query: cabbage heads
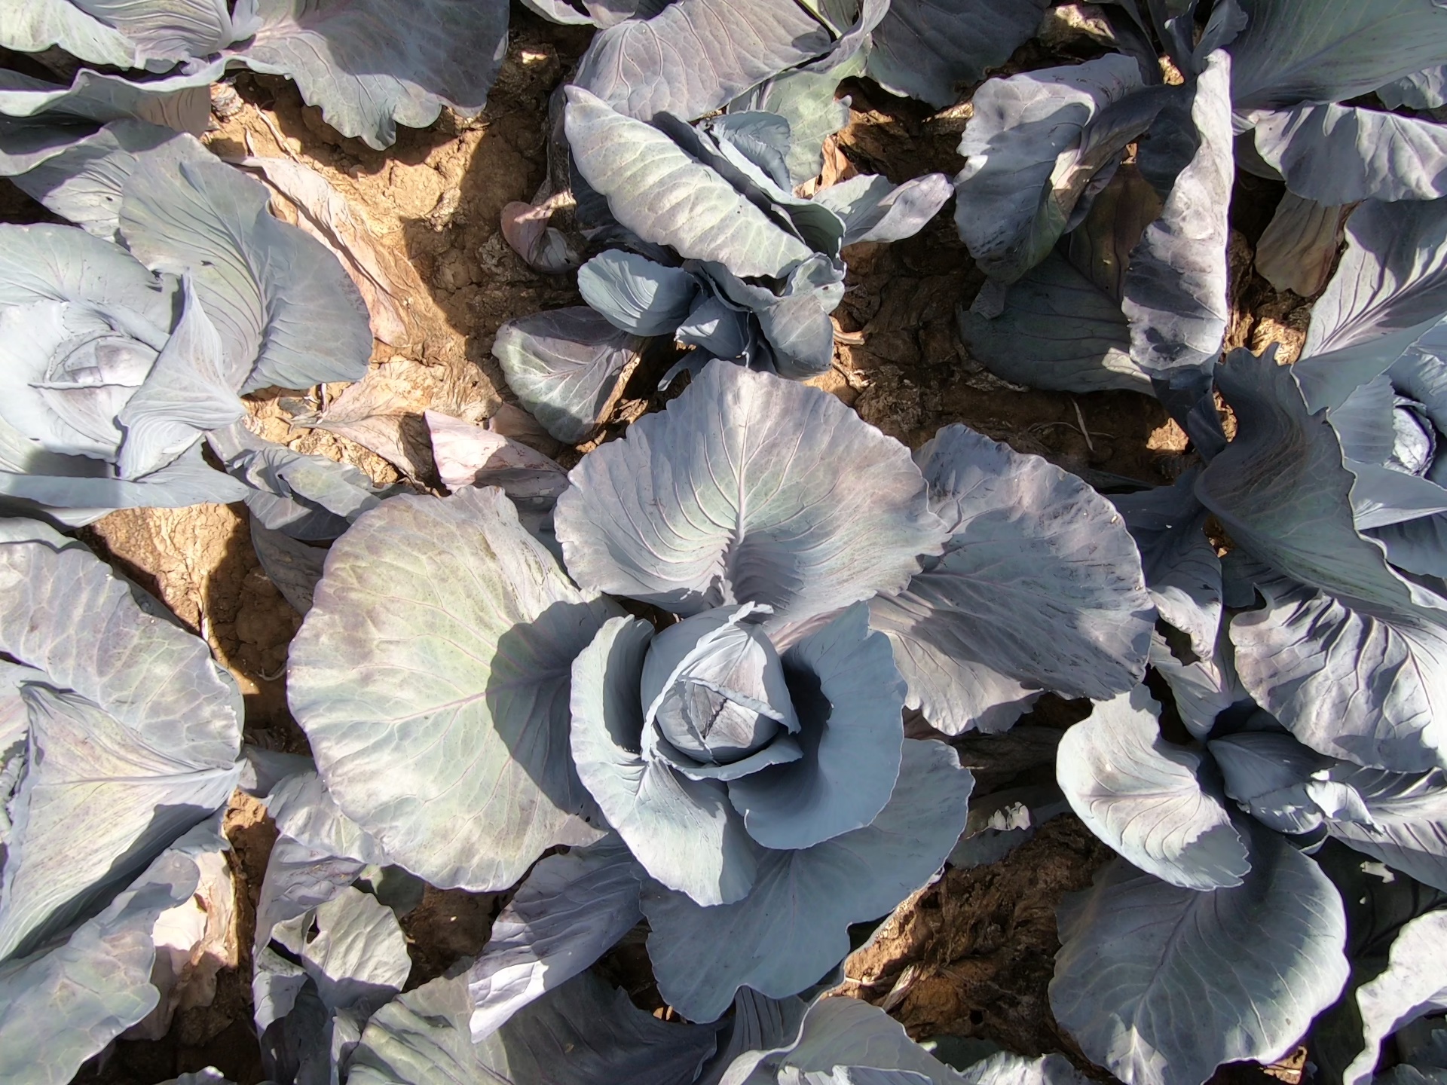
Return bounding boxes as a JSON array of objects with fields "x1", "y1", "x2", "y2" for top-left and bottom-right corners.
[
  {"x1": 2, "y1": 720, "x2": 125, "y2": 865},
  {"x1": 46, "y1": 335, "x2": 194, "y2": 448},
  {"x1": 1331, "y1": 396, "x2": 1436, "y2": 503},
  {"x1": 647, "y1": 617, "x2": 788, "y2": 768},
  {"x1": 1228, "y1": 730, "x2": 1330, "y2": 834}
]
